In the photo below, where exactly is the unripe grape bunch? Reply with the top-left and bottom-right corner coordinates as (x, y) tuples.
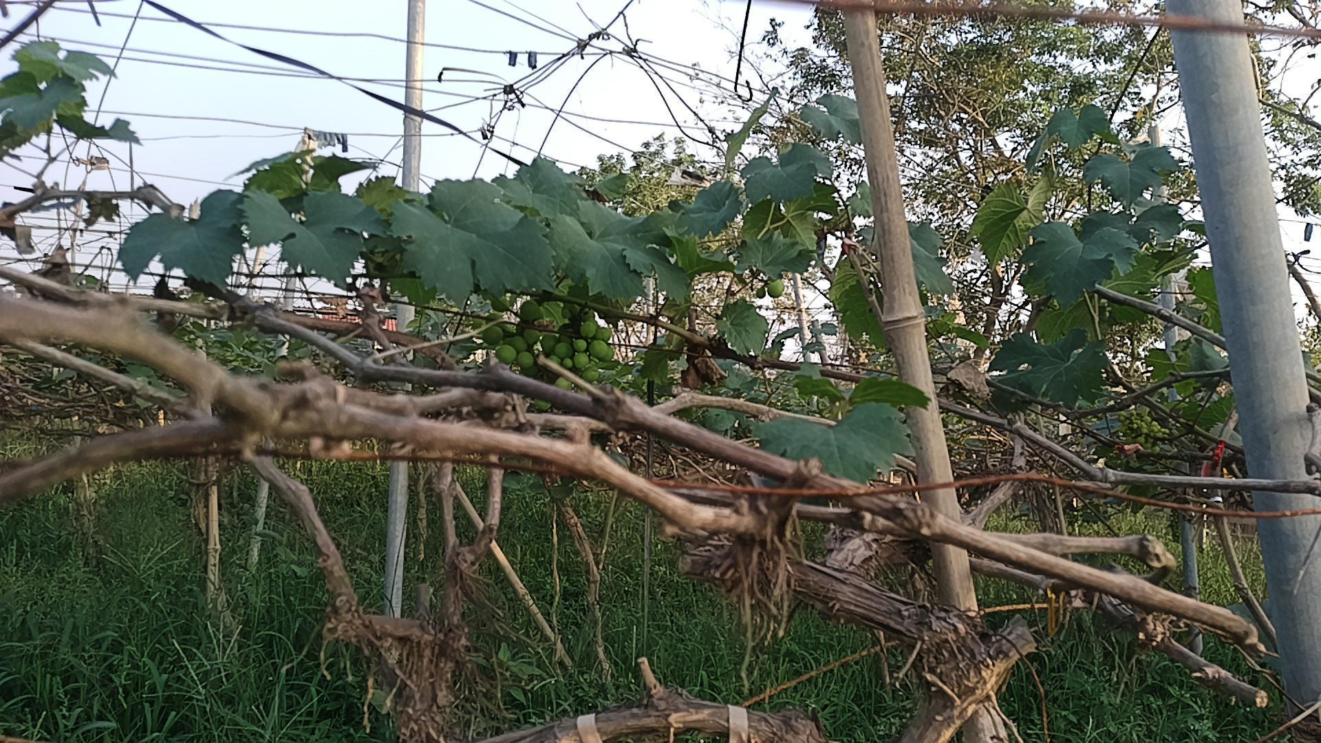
(482, 300), (614, 410)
